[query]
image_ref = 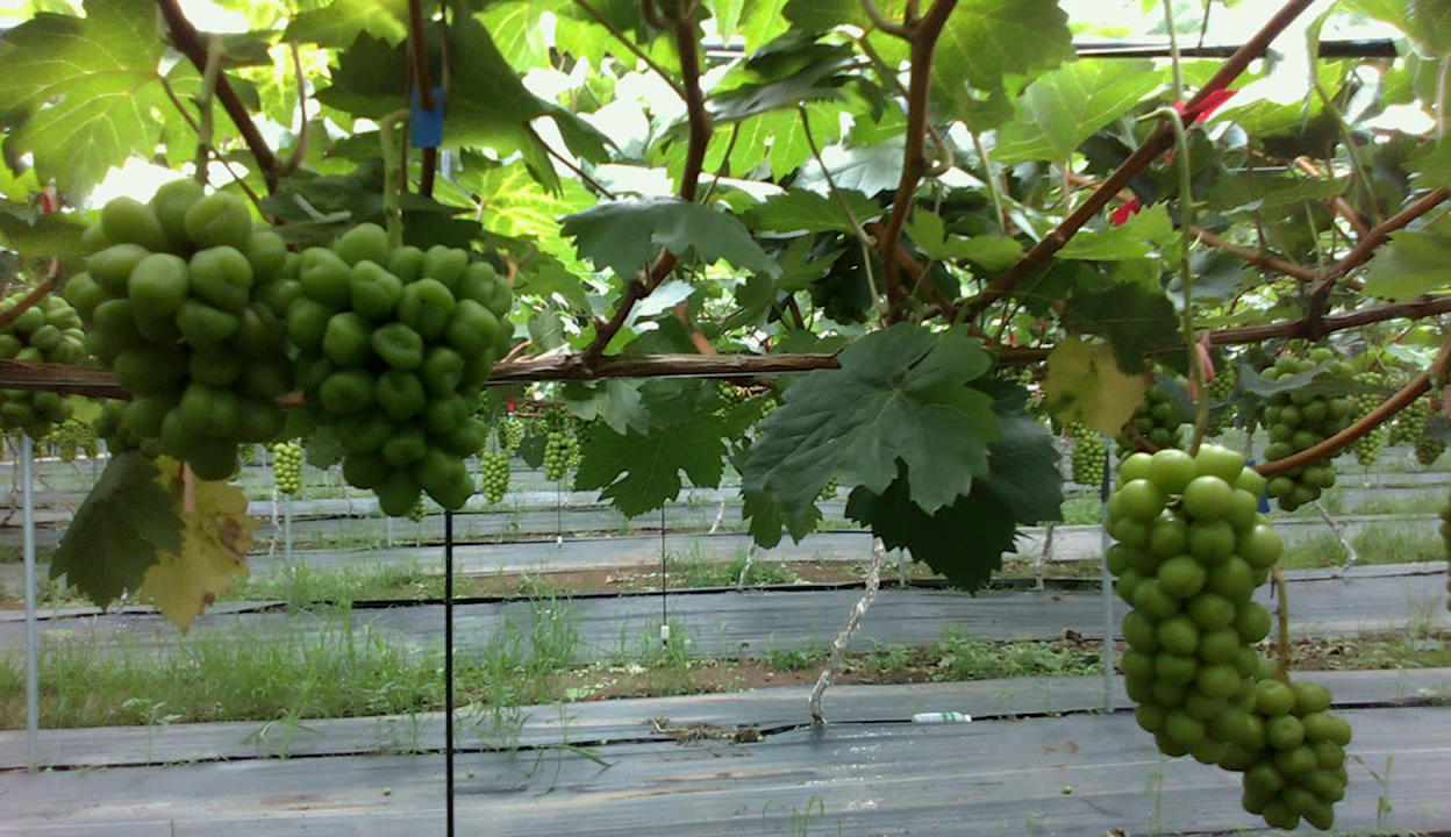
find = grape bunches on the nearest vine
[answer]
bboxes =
[285,223,515,517]
[1220,659,1352,830]
[63,177,305,481]
[1106,443,1282,765]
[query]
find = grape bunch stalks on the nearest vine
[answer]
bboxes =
[1157,107,1208,456]
[379,108,409,250]
[194,34,227,188]
[1272,565,1288,682]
